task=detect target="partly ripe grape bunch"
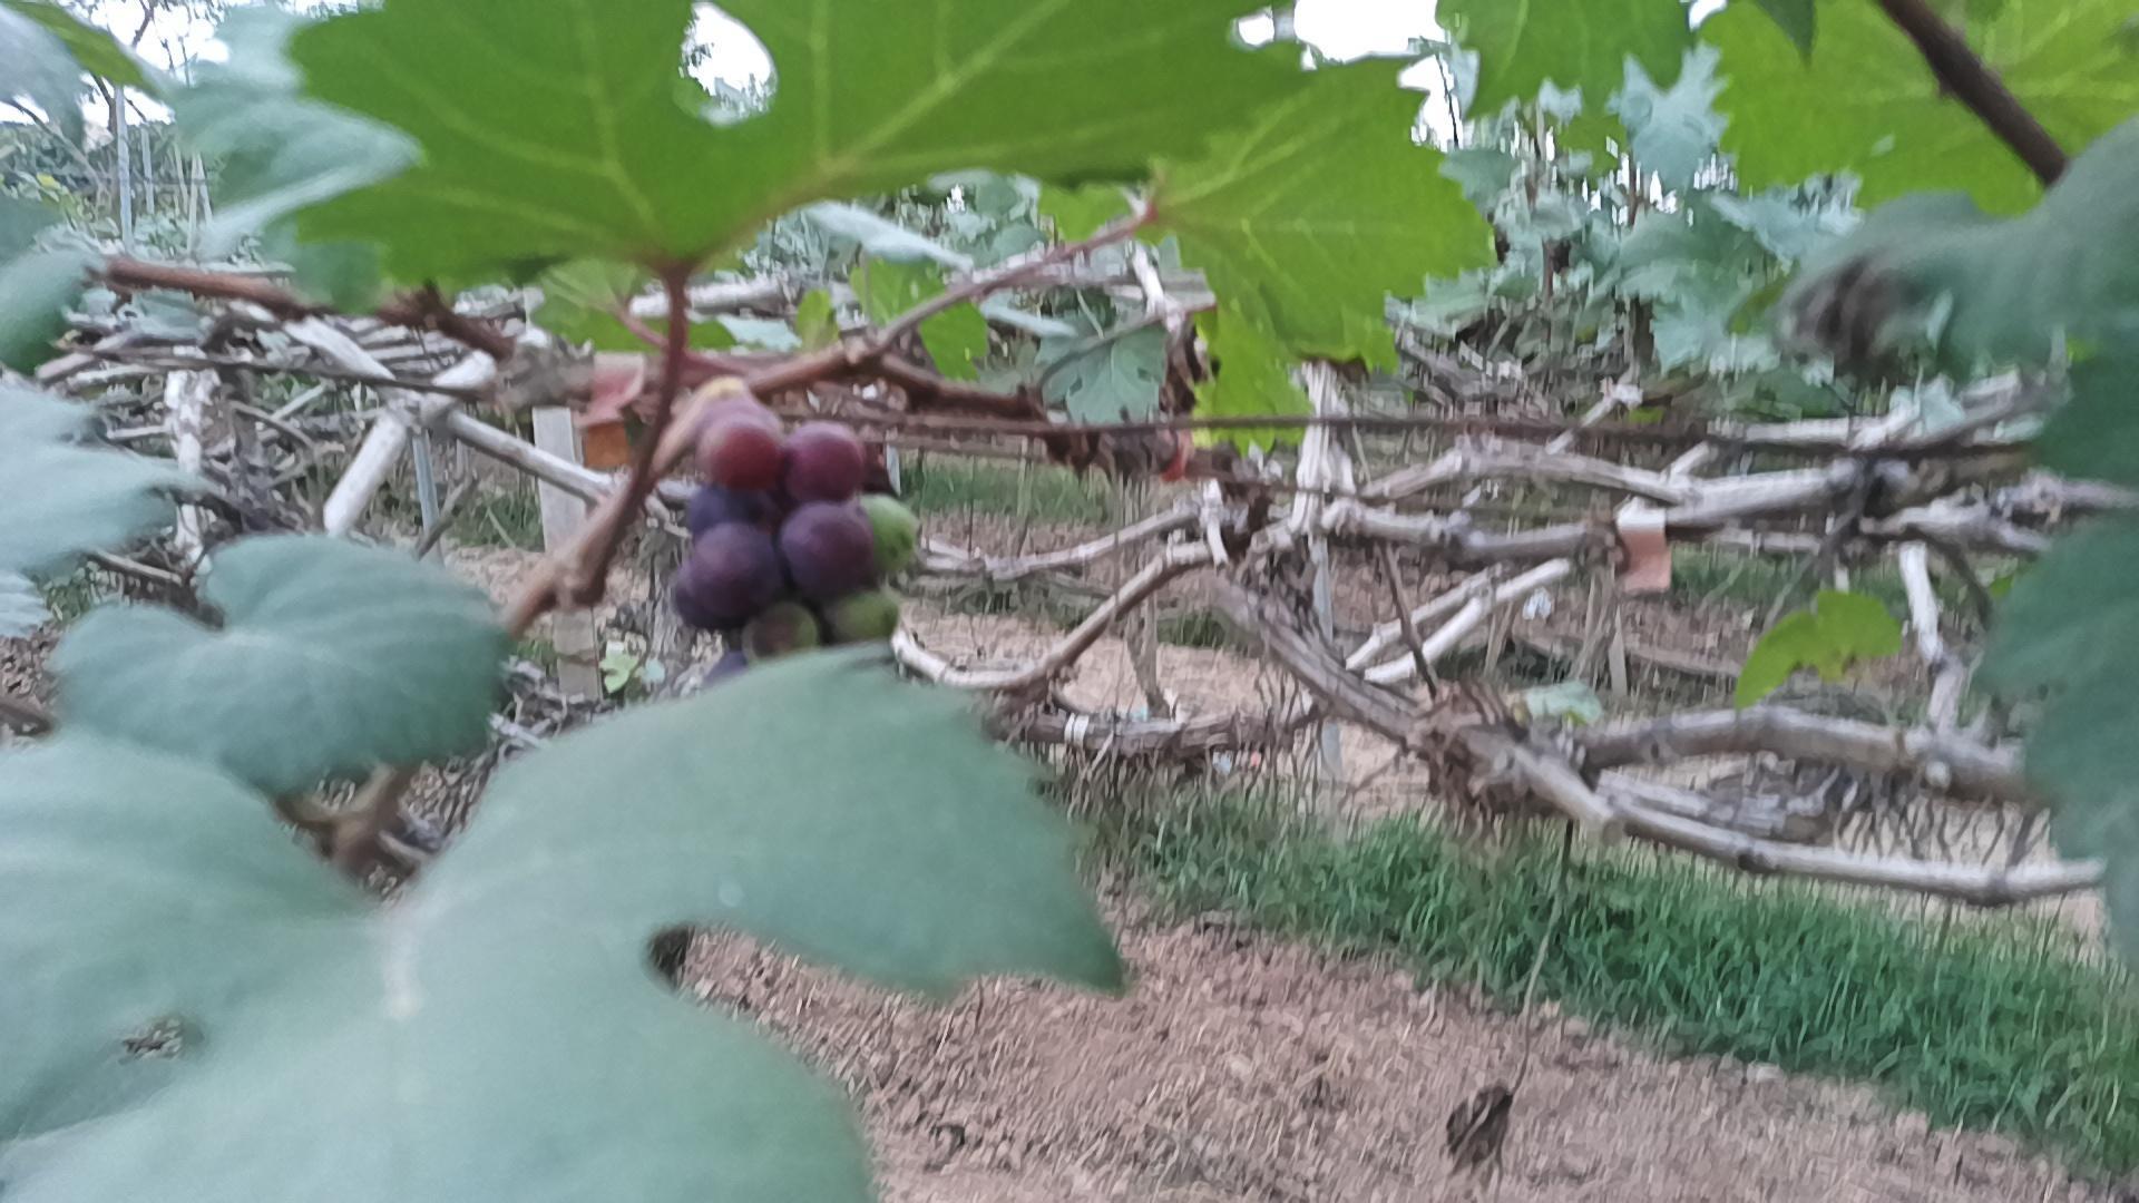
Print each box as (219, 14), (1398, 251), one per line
(670, 404), (914, 682)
